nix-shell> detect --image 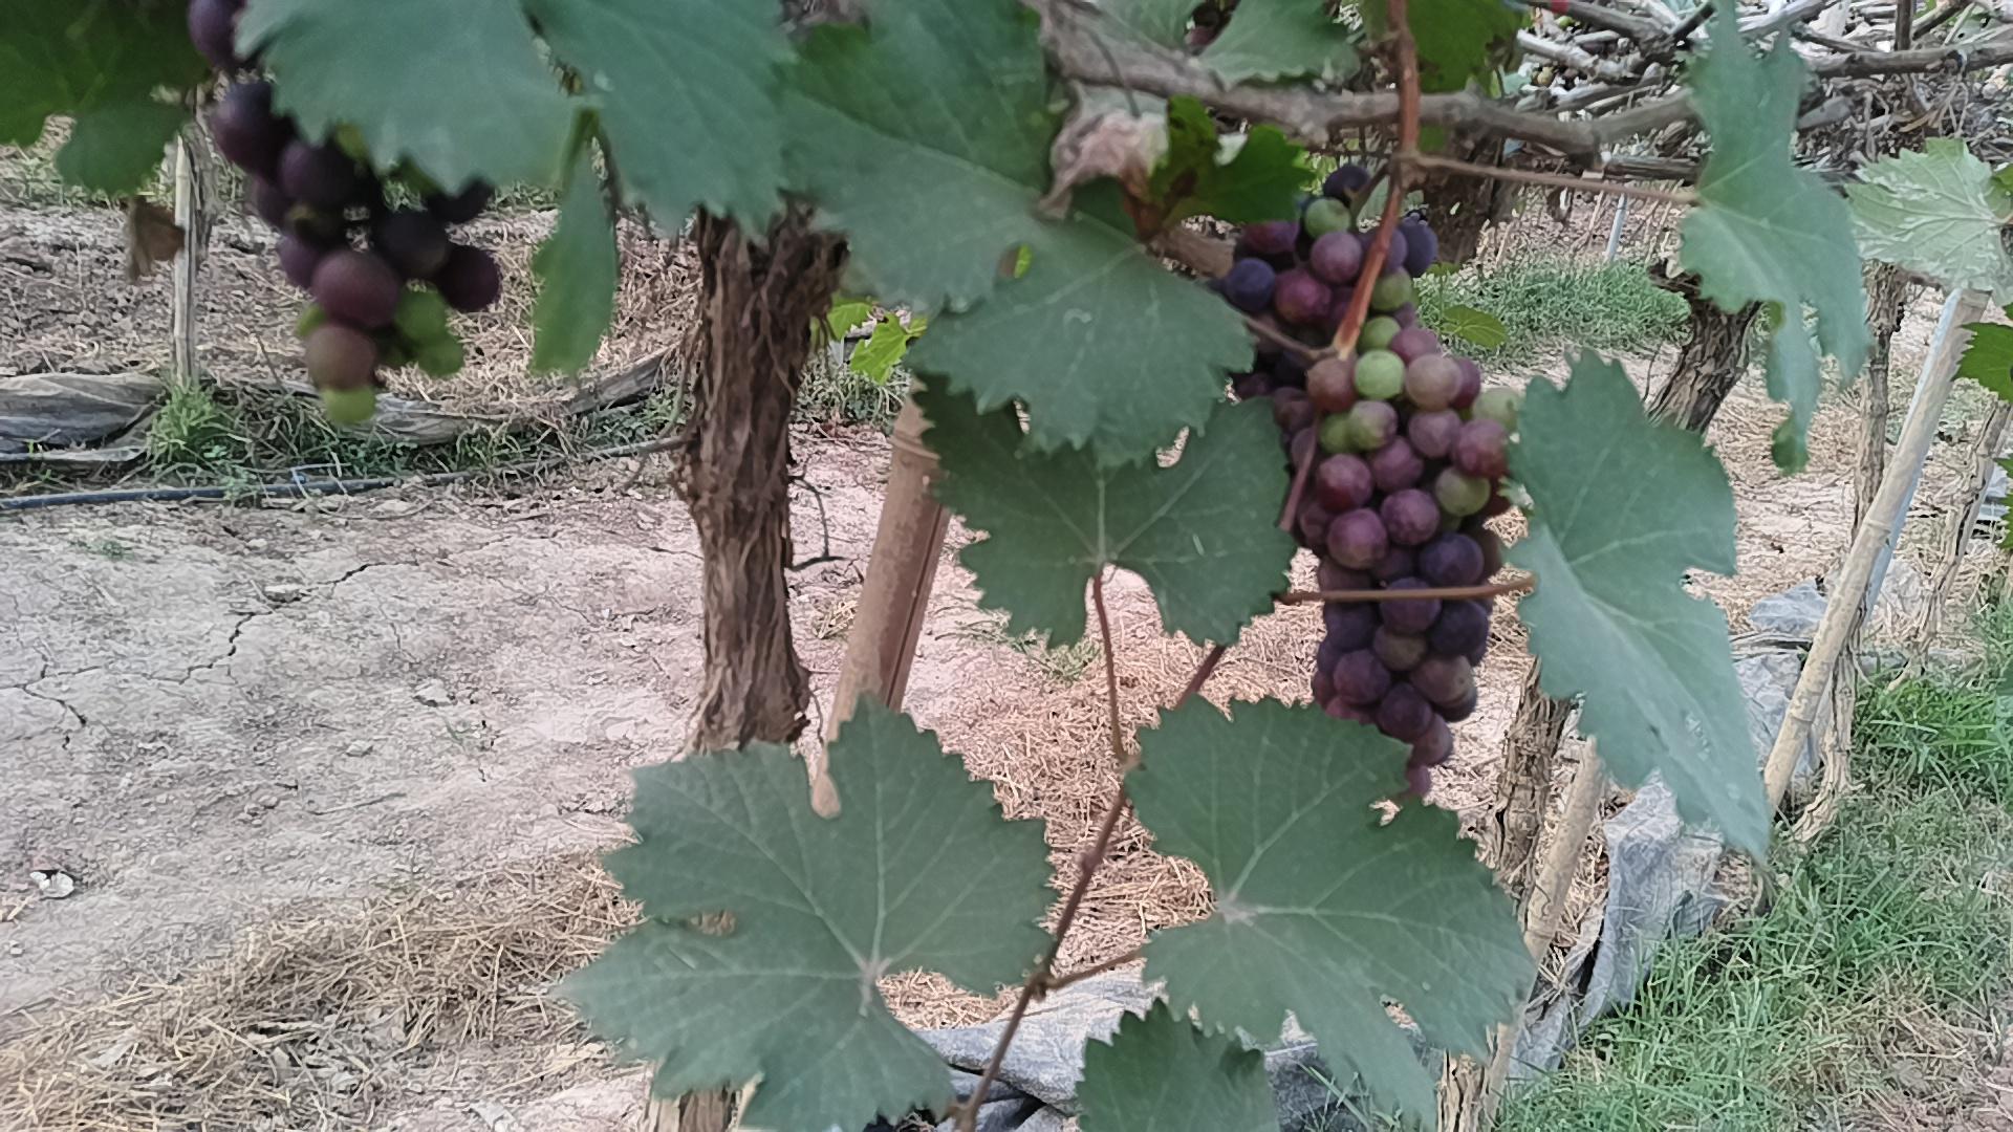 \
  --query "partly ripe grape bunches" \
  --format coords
[1213,167,1523,800]
[185,0,495,422]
